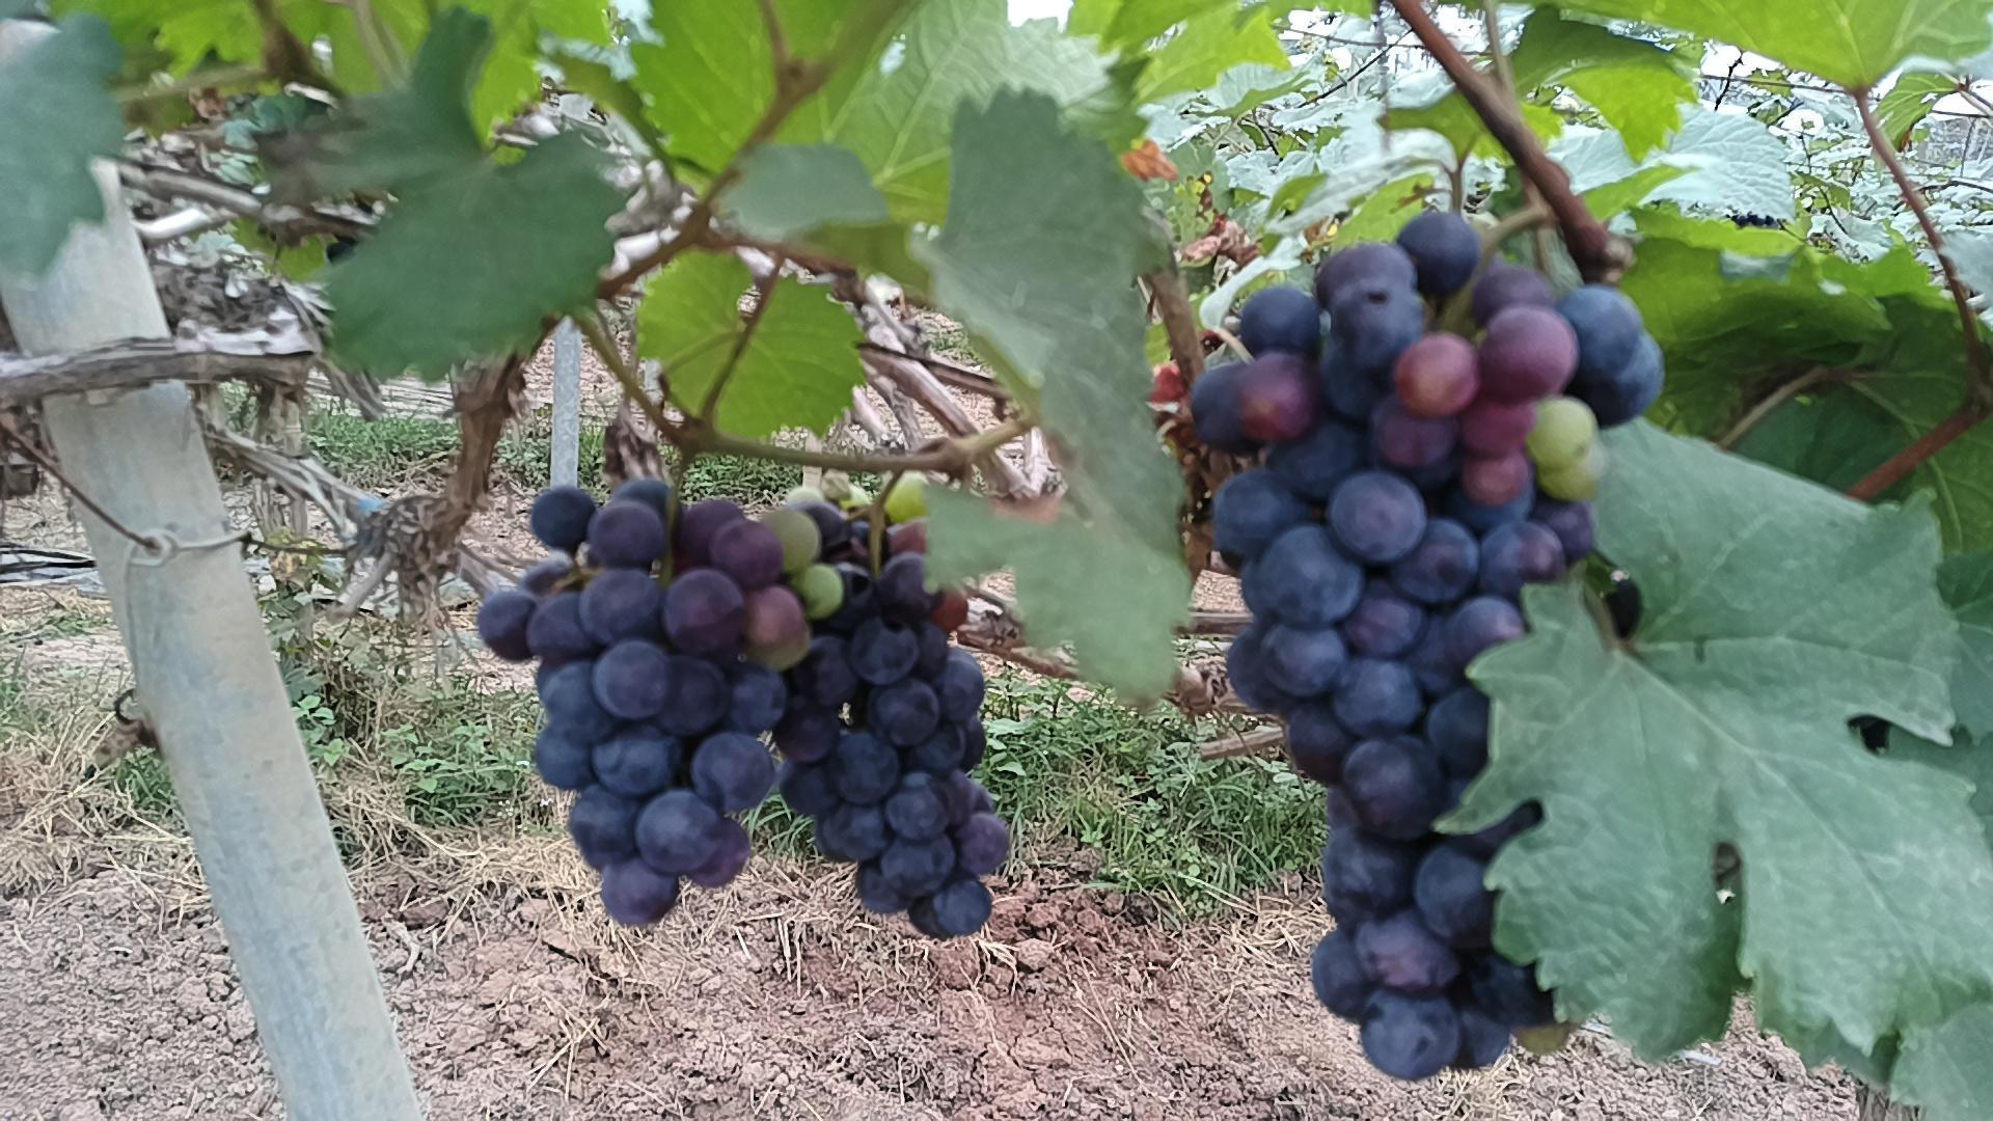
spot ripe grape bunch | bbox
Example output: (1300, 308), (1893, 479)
(772, 500), (1008, 938)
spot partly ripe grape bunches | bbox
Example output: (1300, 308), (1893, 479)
(1190, 210), (1664, 1079)
(479, 480), (844, 927)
